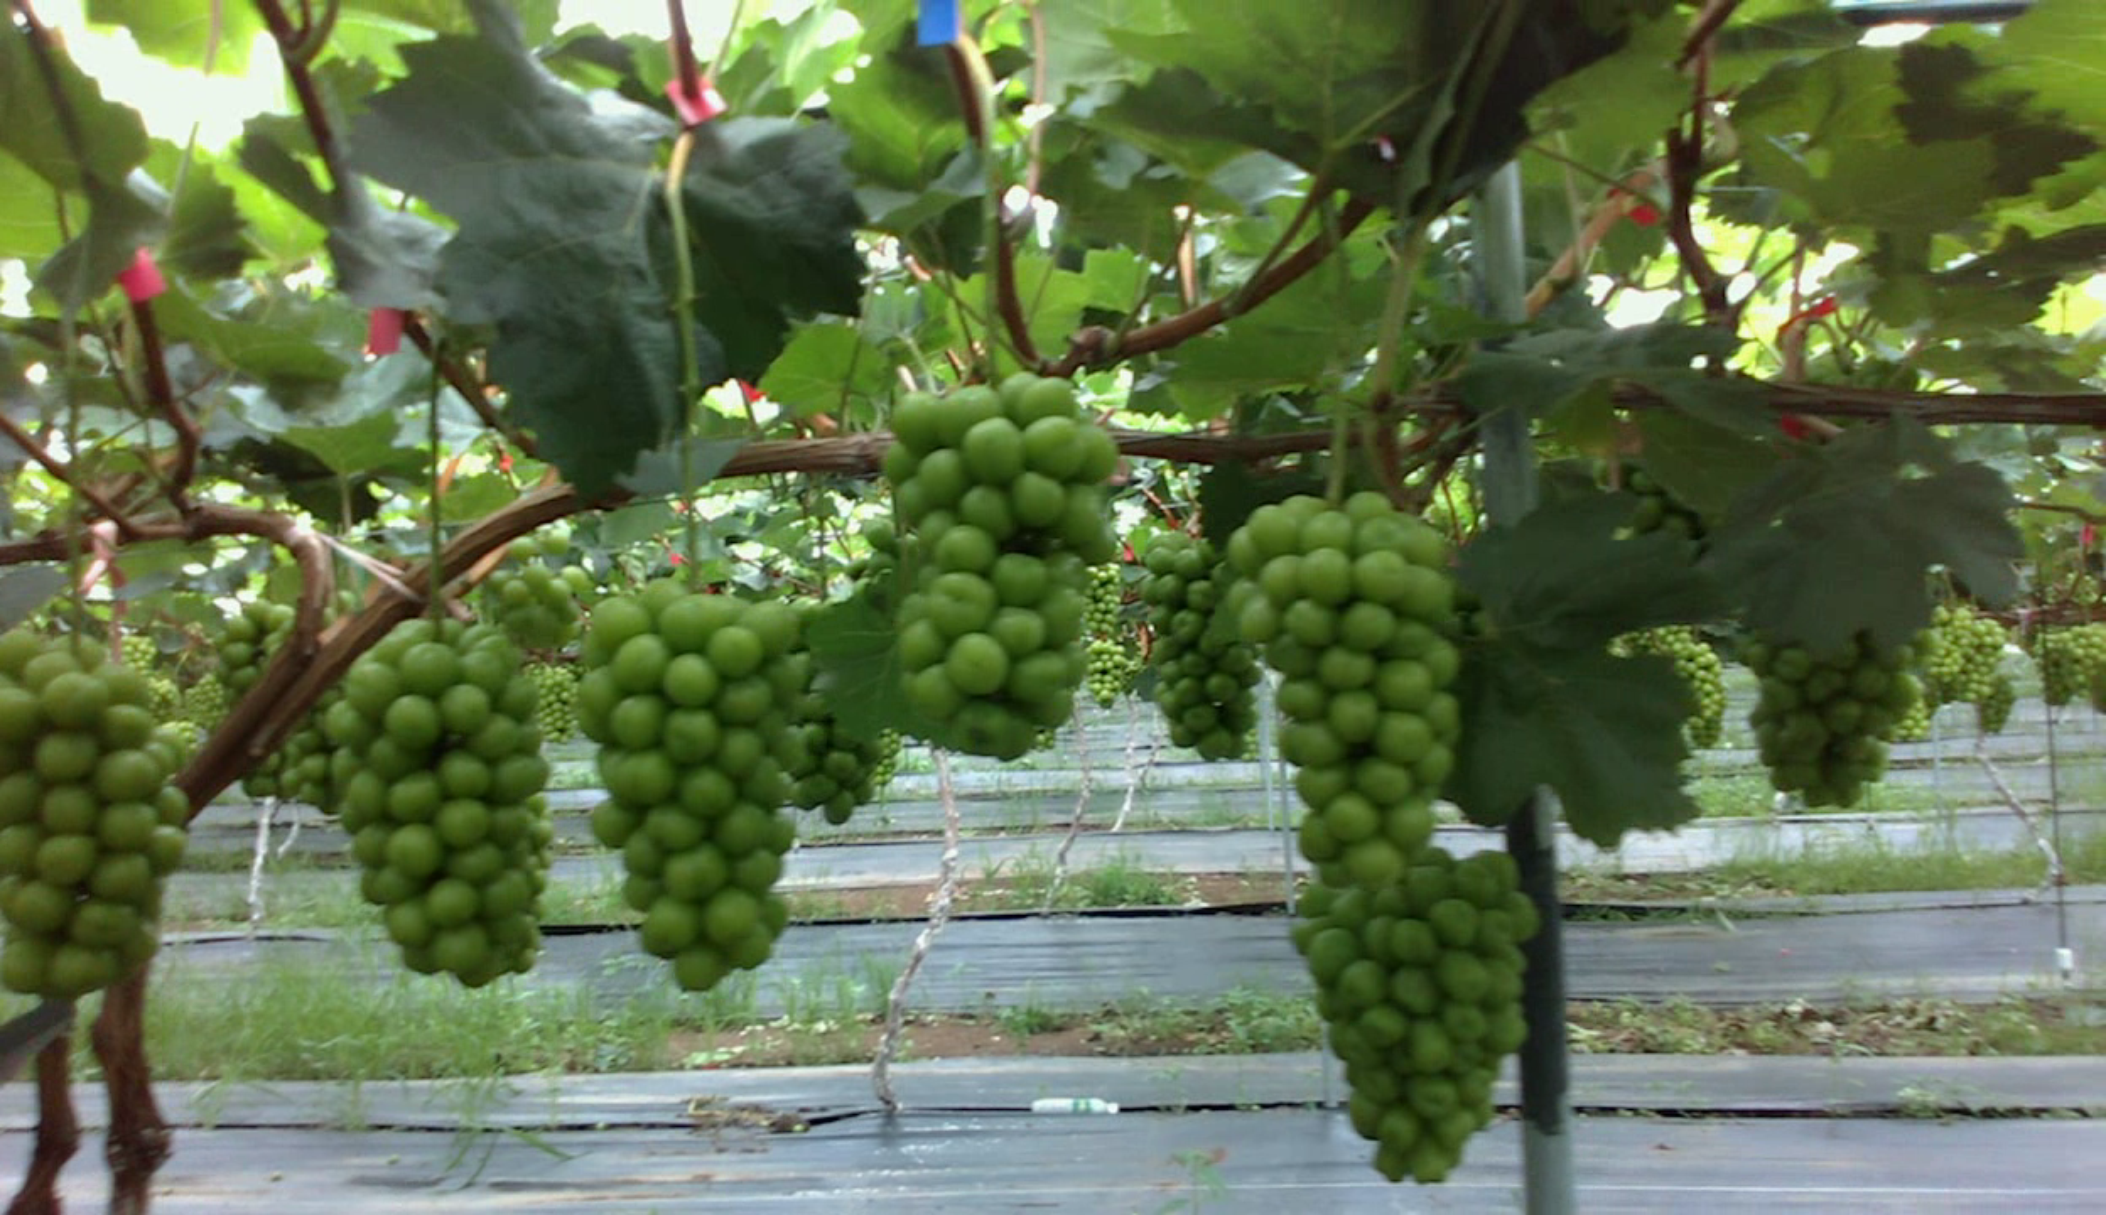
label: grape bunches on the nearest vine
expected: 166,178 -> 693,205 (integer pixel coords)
881,370 -> 1120,759
0,628 -> 191,999
324,616 -> 555,989
1288,845 -> 1539,1186
1223,491 -> 1463,889
572,577 -> 808,992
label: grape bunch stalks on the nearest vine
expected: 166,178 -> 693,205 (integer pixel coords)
953,34 -> 1004,386
57,354 -> 84,653
429,339 -> 447,641
1320,187 -> 1353,511
663,130 -> 704,594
